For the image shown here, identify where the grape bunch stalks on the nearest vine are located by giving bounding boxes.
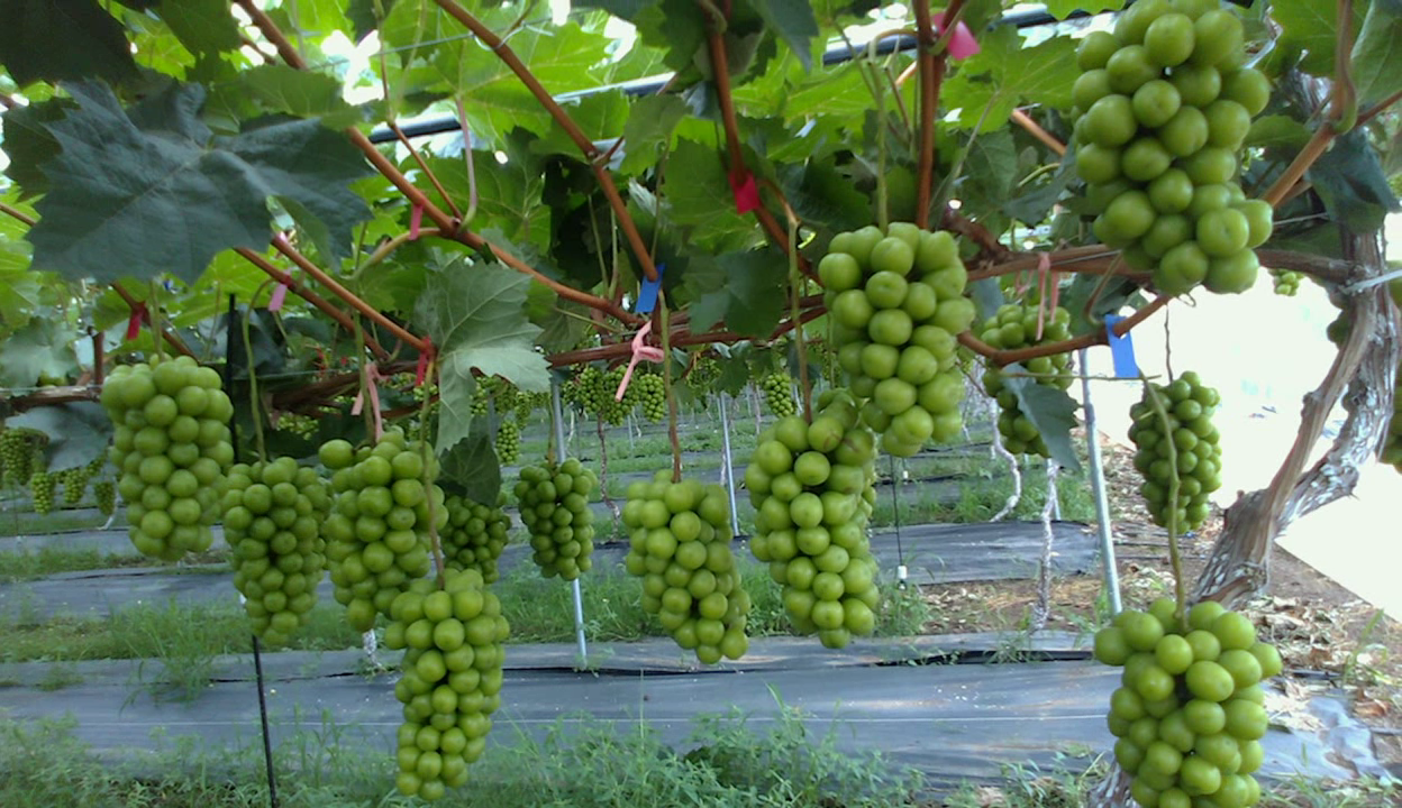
[419,361,445,588]
[1138,368,1186,635]
[867,29,917,235]
[756,177,812,424]
[354,311,376,449]
[151,281,164,361]
[658,291,681,483]
[243,279,274,468]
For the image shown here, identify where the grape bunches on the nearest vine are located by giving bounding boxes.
[745,392,880,649]
[383,569,509,801]
[320,432,431,632]
[818,221,976,458]
[1068,1,1271,295]
[102,355,236,563]
[220,458,329,640]
[620,468,753,664]
[1091,598,1283,807]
